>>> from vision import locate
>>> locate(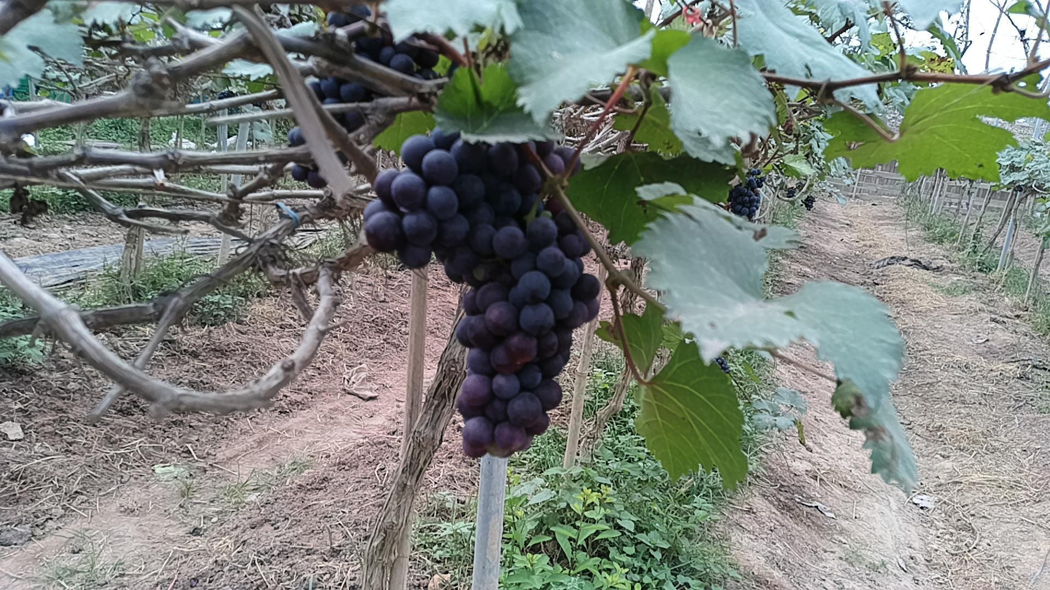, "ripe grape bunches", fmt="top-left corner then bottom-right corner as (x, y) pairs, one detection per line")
(801, 194), (816, 211)
(365, 129), (599, 457)
(785, 186), (798, 199)
(287, 3), (443, 189)
(726, 168), (766, 221)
